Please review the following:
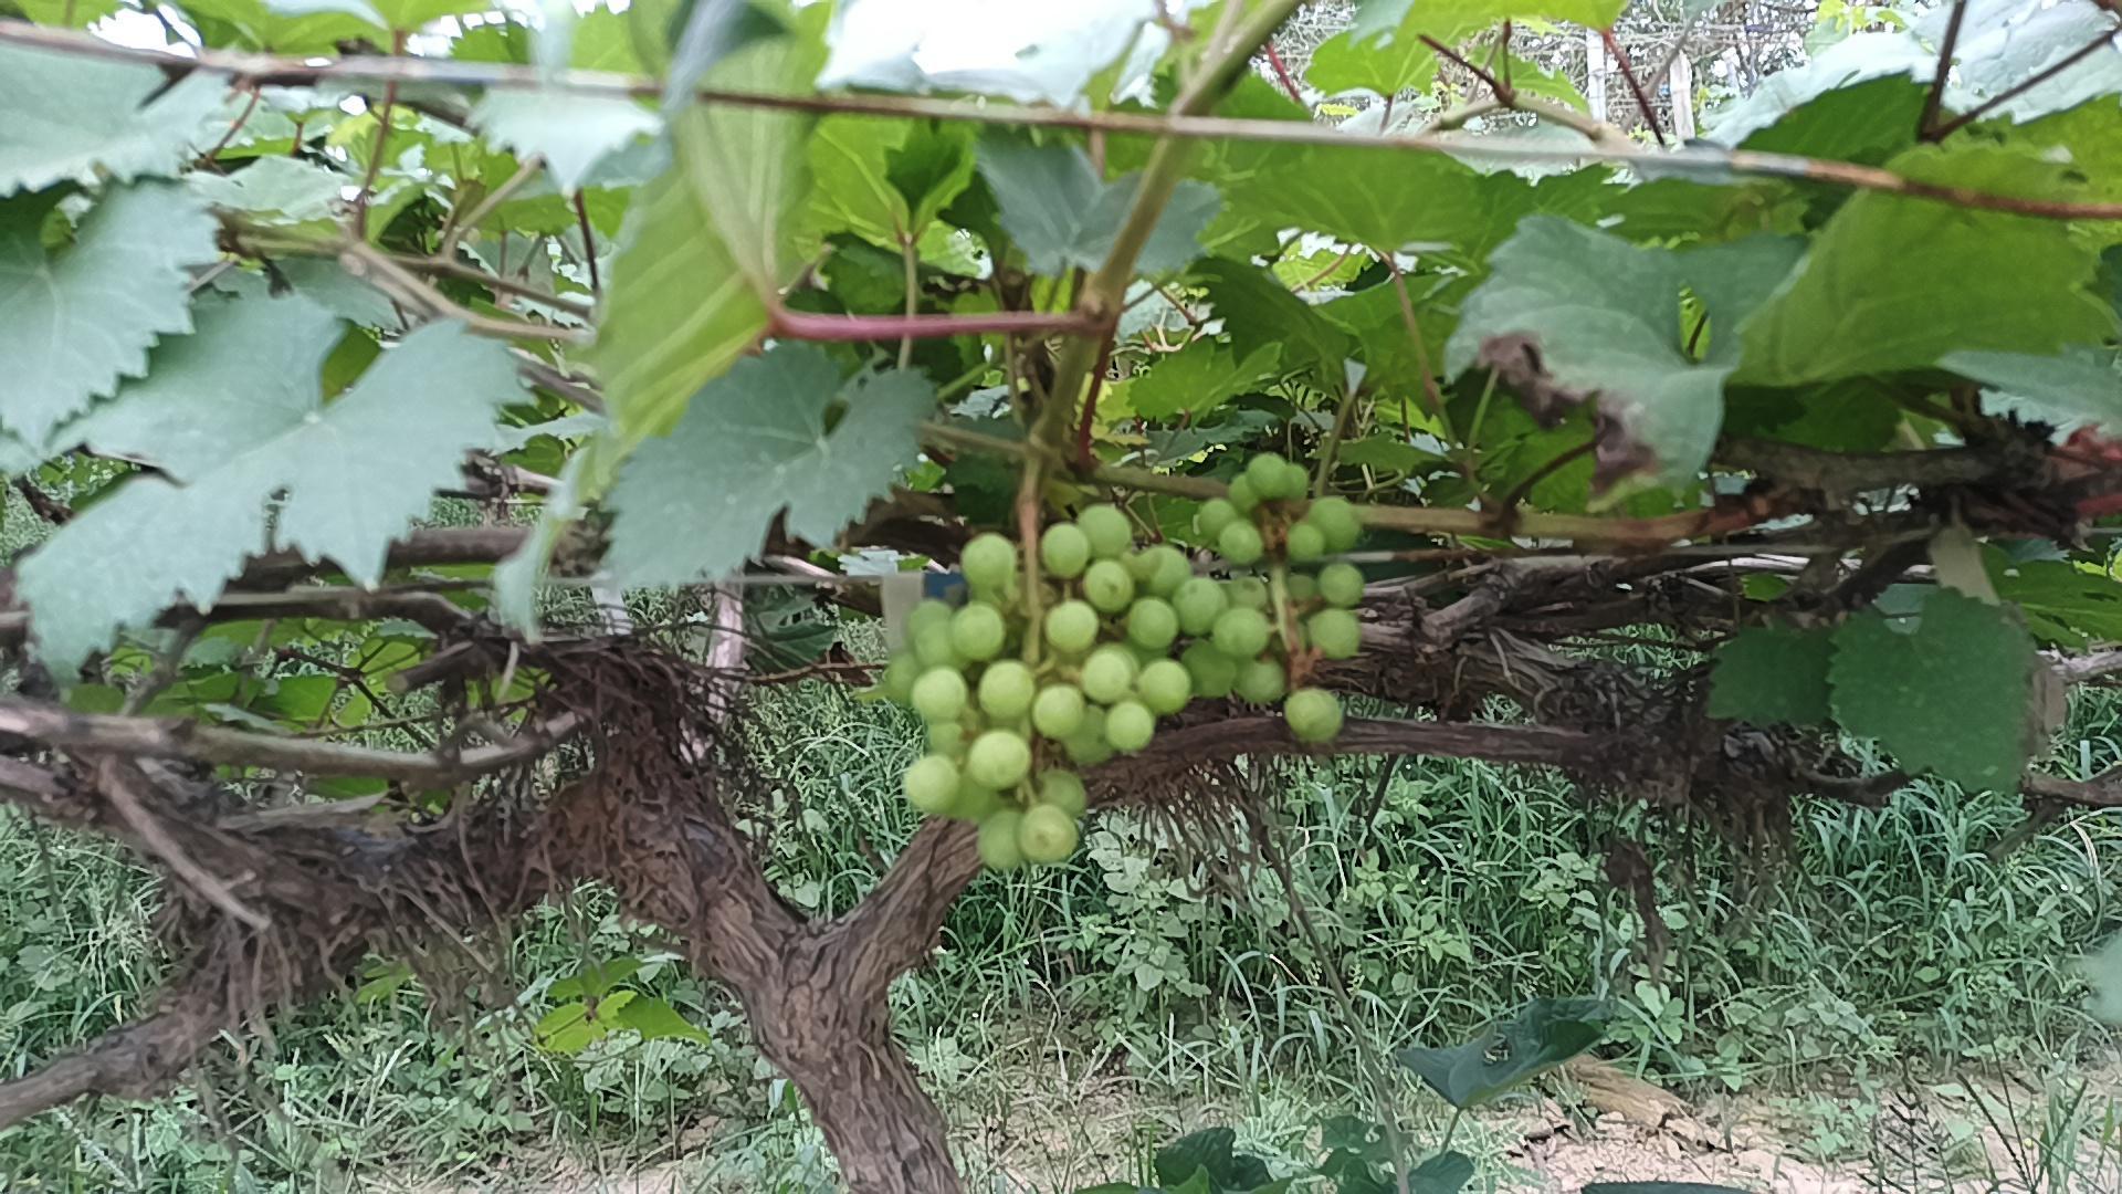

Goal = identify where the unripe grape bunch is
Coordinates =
[874,454,1363,868]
